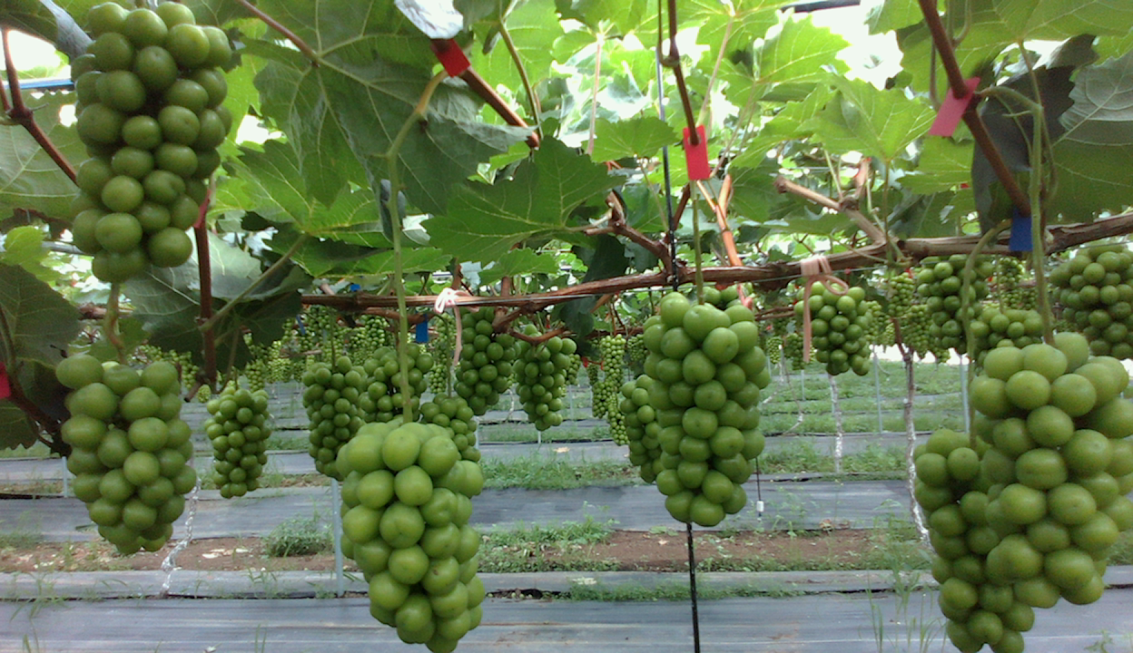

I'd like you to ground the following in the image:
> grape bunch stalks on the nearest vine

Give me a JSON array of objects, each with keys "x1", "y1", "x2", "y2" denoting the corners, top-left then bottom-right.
[
  {"x1": 103, "y1": 282, "x2": 126, "y2": 363},
  {"x1": 389, "y1": 69, "x2": 449, "y2": 424},
  {"x1": 974, "y1": 87, "x2": 1058, "y2": 347},
  {"x1": 961, "y1": 216, "x2": 1011, "y2": 449},
  {"x1": 690, "y1": 179, "x2": 704, "y2": 304}
]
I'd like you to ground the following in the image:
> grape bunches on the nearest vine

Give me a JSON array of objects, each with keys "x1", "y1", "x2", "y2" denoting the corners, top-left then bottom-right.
[
  {"x1": 56, "y1": 356, "x2": 197, "y2": 557},
  {"x1": 70, "y1": 1, "x2": 232, "y2": 283},
  {"x1": 974, "y1": 334, "x2": 1132, "y2": 607},
  {"x1": 337, "y1": 420, "x2": 486, "y2": 652},
  {"x1": 911, "y1": 428, "x2": 1033, "y2": 652},
  {"x1": 642, "y1": 292, "x2": 770, "y2": 527}
]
